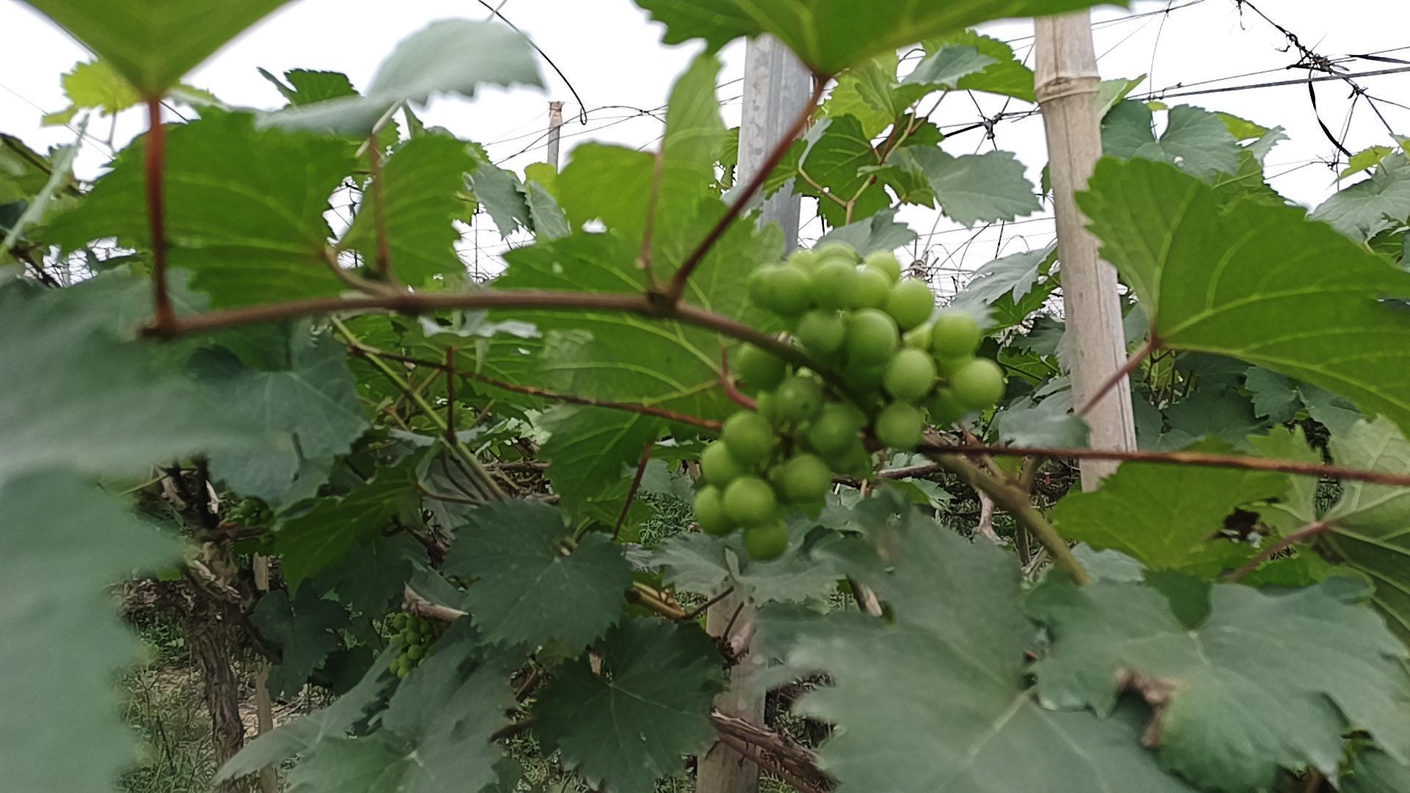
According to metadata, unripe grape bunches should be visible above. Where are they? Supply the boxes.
[695,244,1002,557]
[387,601,446,679]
